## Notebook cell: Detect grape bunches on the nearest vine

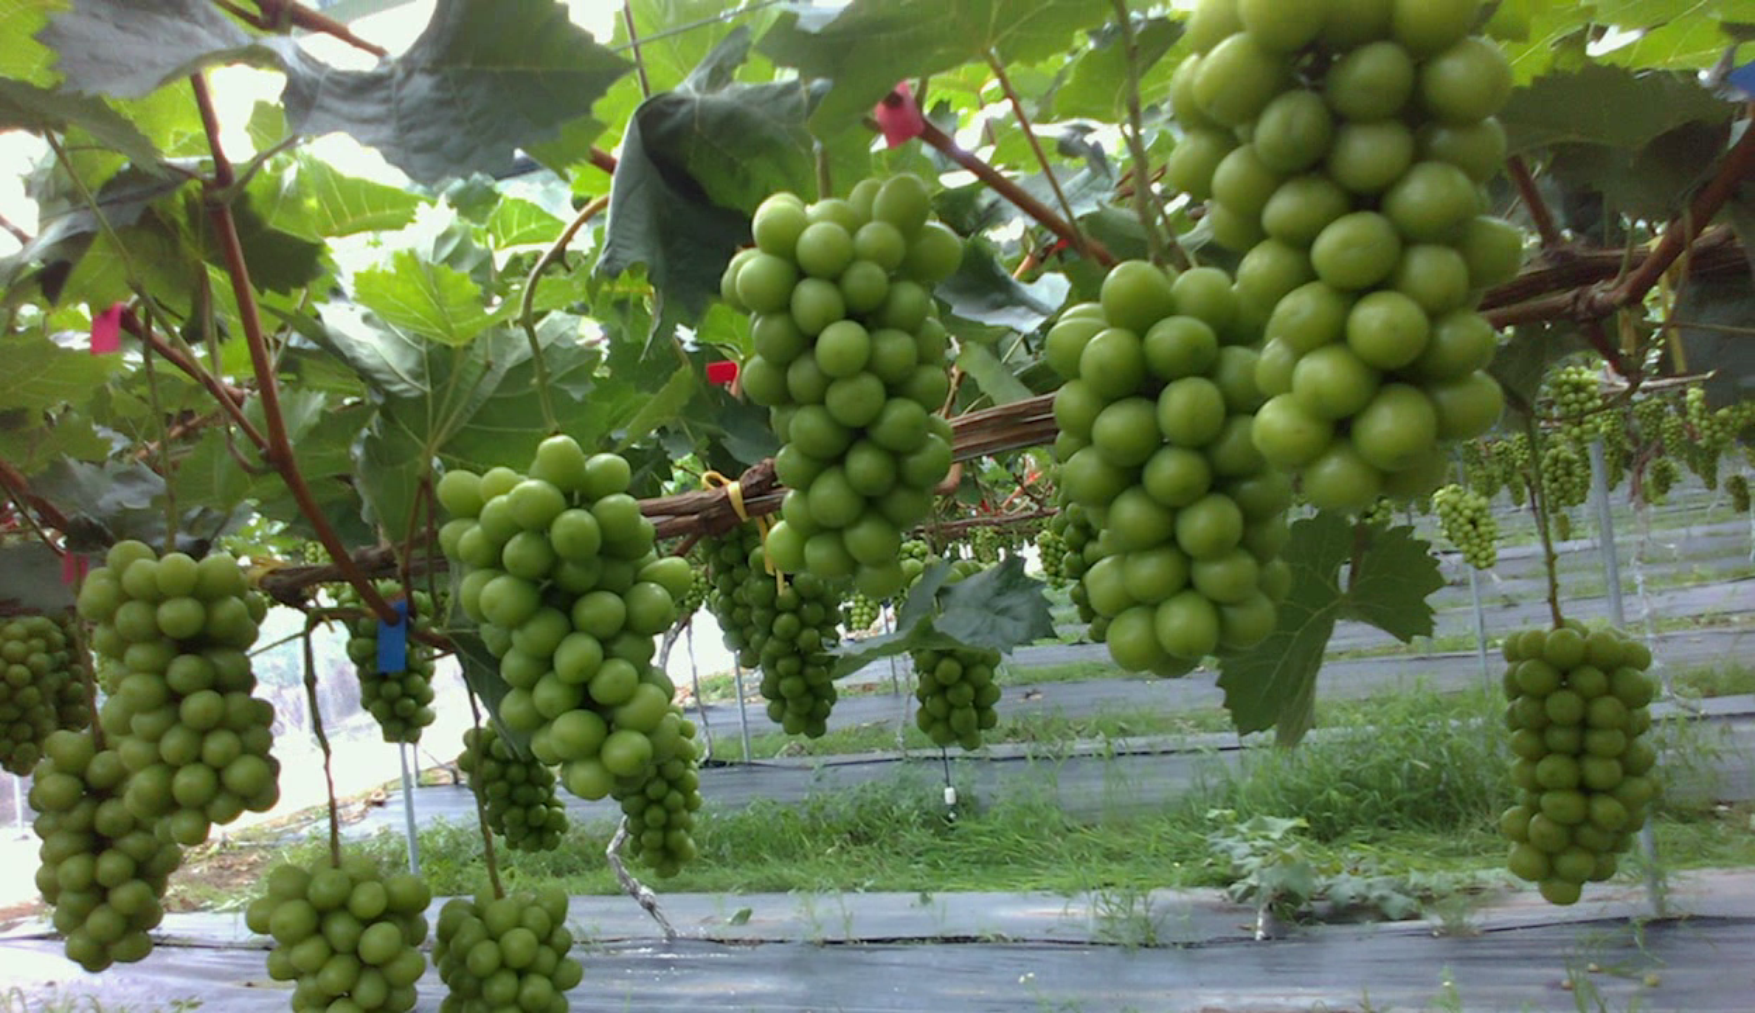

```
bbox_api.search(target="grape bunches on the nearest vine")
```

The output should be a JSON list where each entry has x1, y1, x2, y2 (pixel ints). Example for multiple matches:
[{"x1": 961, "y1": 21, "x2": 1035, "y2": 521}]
[
  {"x1": 28, "y1": 729, "x2": 180, "y2": 975},
  {"x1": 430, "y1": 885, "x2": 584, "y2": 1012},
  {"x1": 1500, "y1": 618, "x2": 1658, "y2": 903},
  {"x1": 247, "y1": 855, "x2": 429, "y2": 1012},
  {"x1": 1169, "y1": 0, "x2": 1522, "y2": 518},
  {"x1": 435, "y1": 435, "x2": 690, "y2": 803},
  {"x1": 77, "y1": 540, "x2": 281, "y2": 848},
  {"x1": 723, "y1": 173, "x2": 962, "y2": 595},
  {"x1": 1042, "y1": 260, "x2": 1290, "y2": 681}
]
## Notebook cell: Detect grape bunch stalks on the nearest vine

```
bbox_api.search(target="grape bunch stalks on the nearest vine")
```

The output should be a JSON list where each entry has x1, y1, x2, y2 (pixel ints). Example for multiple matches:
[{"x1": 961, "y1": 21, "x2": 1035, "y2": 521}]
[
  {"x1": 1115, "y1": 0, "x2": 1163, "y2": 262},
  {"x1": 304, "y1": 613, "x2": 339, "y2": 865},
  {"x1": 814, "y1": 145, "x2": 834, "y2": 194},
  {"x1": 470, "y1": 691, "x2": 503, "y2": 898},
  {"x1": 72, "y1": 618, "x2": 105, "y2": 750},
  {"x1": 1526, "y1": 415, "x2": 1562, "y2": 625},
  {"x1": 142, "y1": 314, "x2": 179, "y2": 552},
  {"x1": 515, "y1": 196, "x2": 605, "y2": 435}
]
